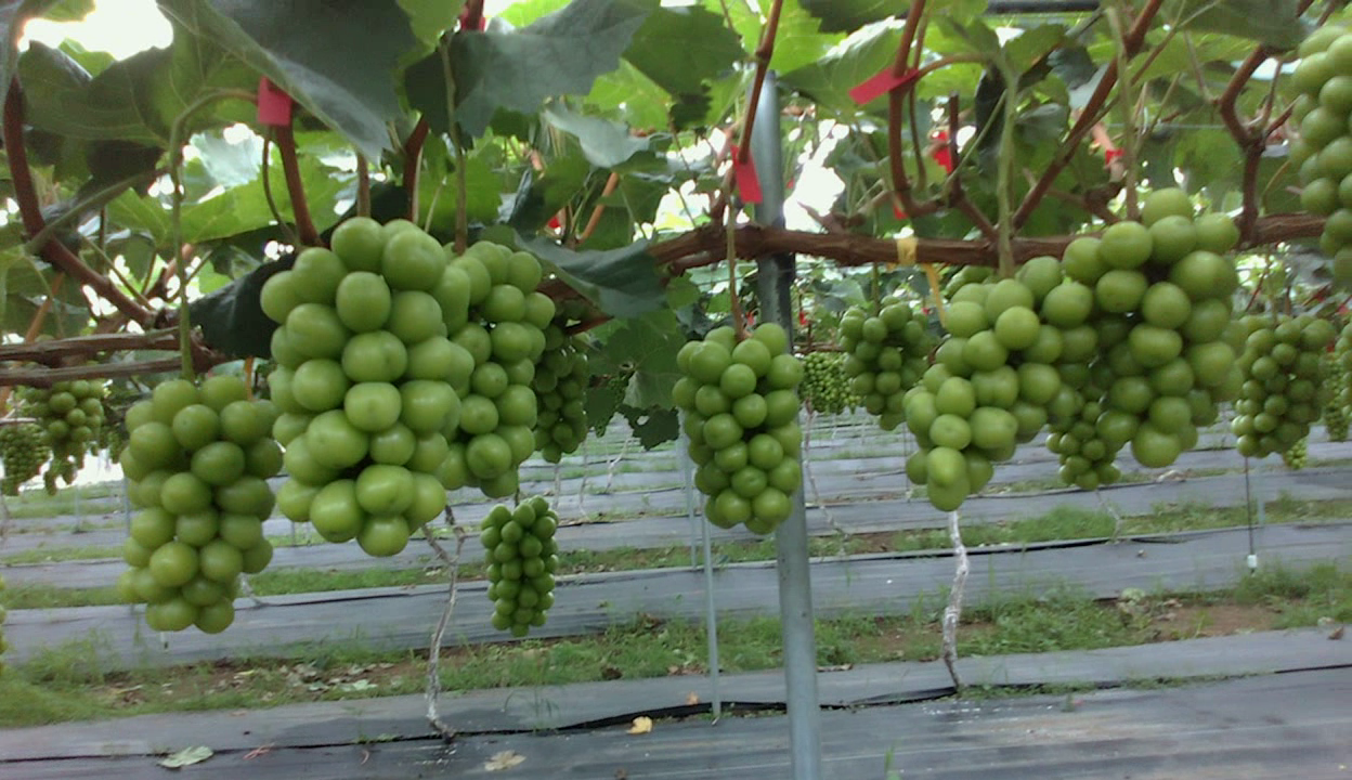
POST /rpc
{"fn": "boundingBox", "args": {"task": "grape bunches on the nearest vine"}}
[673,323,804,533]
[260,218,470,558]
[1059,191,1252,468]
[117,374,281,632]
[441,240,554,498]
[901,256,1098,515]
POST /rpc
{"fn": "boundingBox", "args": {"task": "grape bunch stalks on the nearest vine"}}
[721,170,744,339]
[169,90,247,382]
[921,53,1016,275]
[438,36,466,250]
[356,154,369,217]
[1105,8,1137,216]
